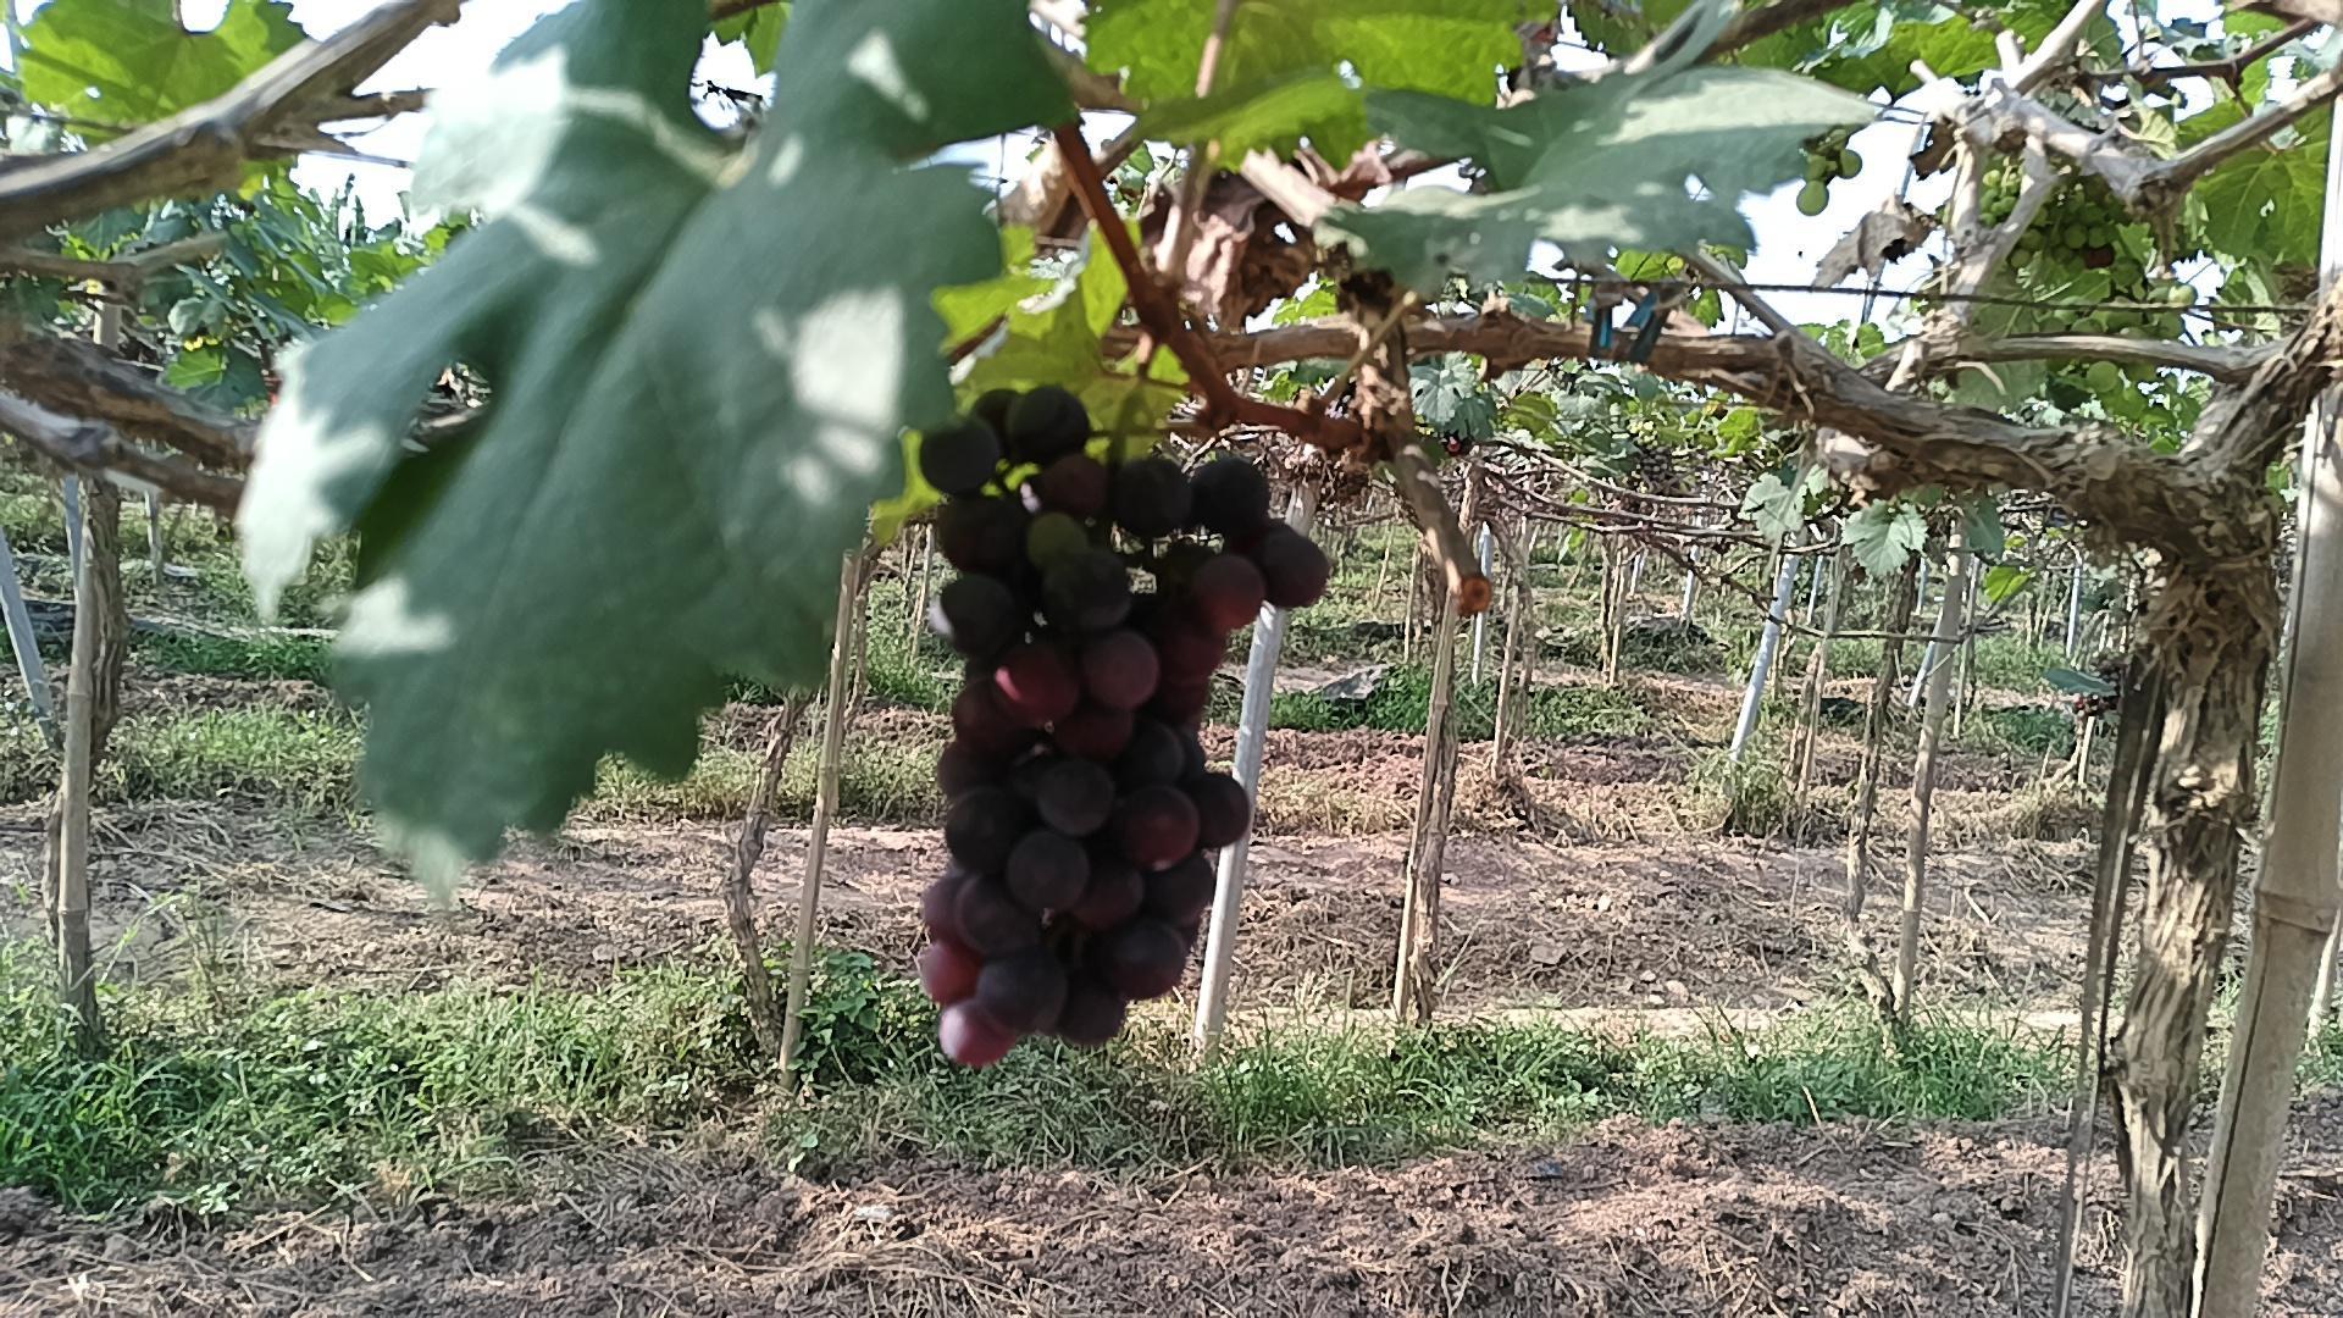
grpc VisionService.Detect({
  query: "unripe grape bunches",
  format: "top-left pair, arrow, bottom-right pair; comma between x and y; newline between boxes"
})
1798,127 -> 1865,216
1976,156 -> 2132,270
2042,254 -> 2199,420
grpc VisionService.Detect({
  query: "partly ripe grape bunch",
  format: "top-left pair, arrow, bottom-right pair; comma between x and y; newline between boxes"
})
918,387 -> 1326,1065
